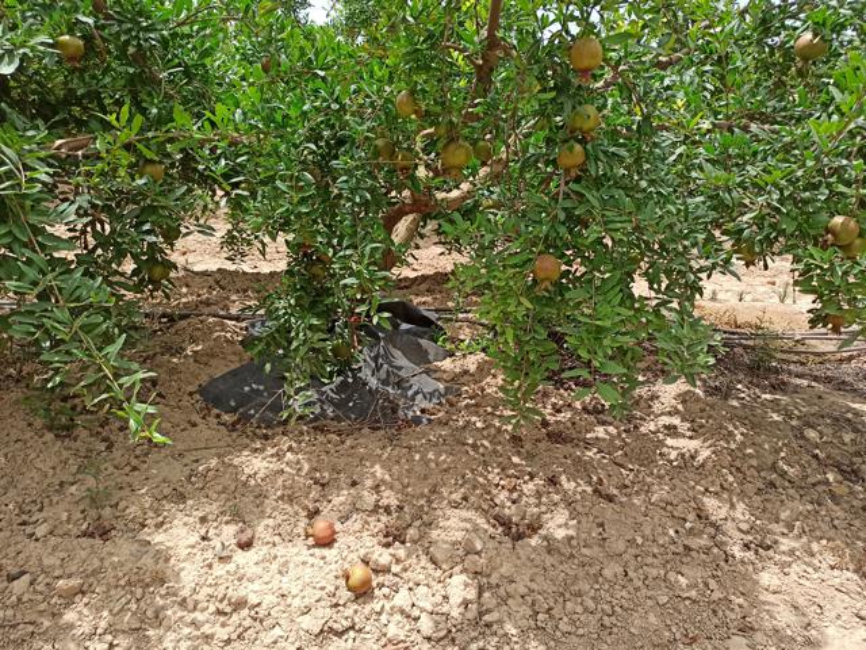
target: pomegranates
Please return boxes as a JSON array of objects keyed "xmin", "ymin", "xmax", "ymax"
[
  {"xmin": 472, "ymin": 141, "xmax": 491, "ymax": 167},
  {"xmin": 570, "ymin": 37, "xmax": 603, "ymax": 84},
  {"xmin": 139, "ymin": 161, "xmax": 164, "ymax": 183},
  {"xmin": 149, "ymin": 264, "xmax": 172, "ymax": 283},
  {"xmin": 438, "ymin": 141, "xmax": 468, "ymax": 179},
  {"xmin": 570, "ymin": 104, "xmax": 601, "ymax": 141},
  {"xmin": 736, "ymin": 246, "xmax": 758, "ymax": 269},
  {"xmin": 533, "ymin": 253, "xmax": 562, "ymax": 292},
  {"xmin": 555, "ymin": 142, "xmax": 586, "ymax": 180},
  {"xmin": 839, "ymin": 236, "xmax": 865, "ymax": 260},
  {"xmin": 395, "ymin": 91, "xmax": 417, "ymax": 115},
  {"xmin": 54, "ymin": 34, "xmax": 85, "ymax": 66},
  {"xmin": 161, "ymin": 227, "xmax": 180, "ymax": 252},
  {"xmin": 821, "ymin": 214, "xmax": 861, "ymax": 248},
  {"xmin": 793, "ymin": 31, "xmax": 828, "ymax": 70},
  {"xmin": 827, "ymin": 314, "xmax": 846, "ymax": 334},
  {"xmin": 391, "ymin": 150, "xmax": 414, "ymax": 177},
  {"xmin": 373, "ymin": 137, "xmax": 395, "ymax": 158}
]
